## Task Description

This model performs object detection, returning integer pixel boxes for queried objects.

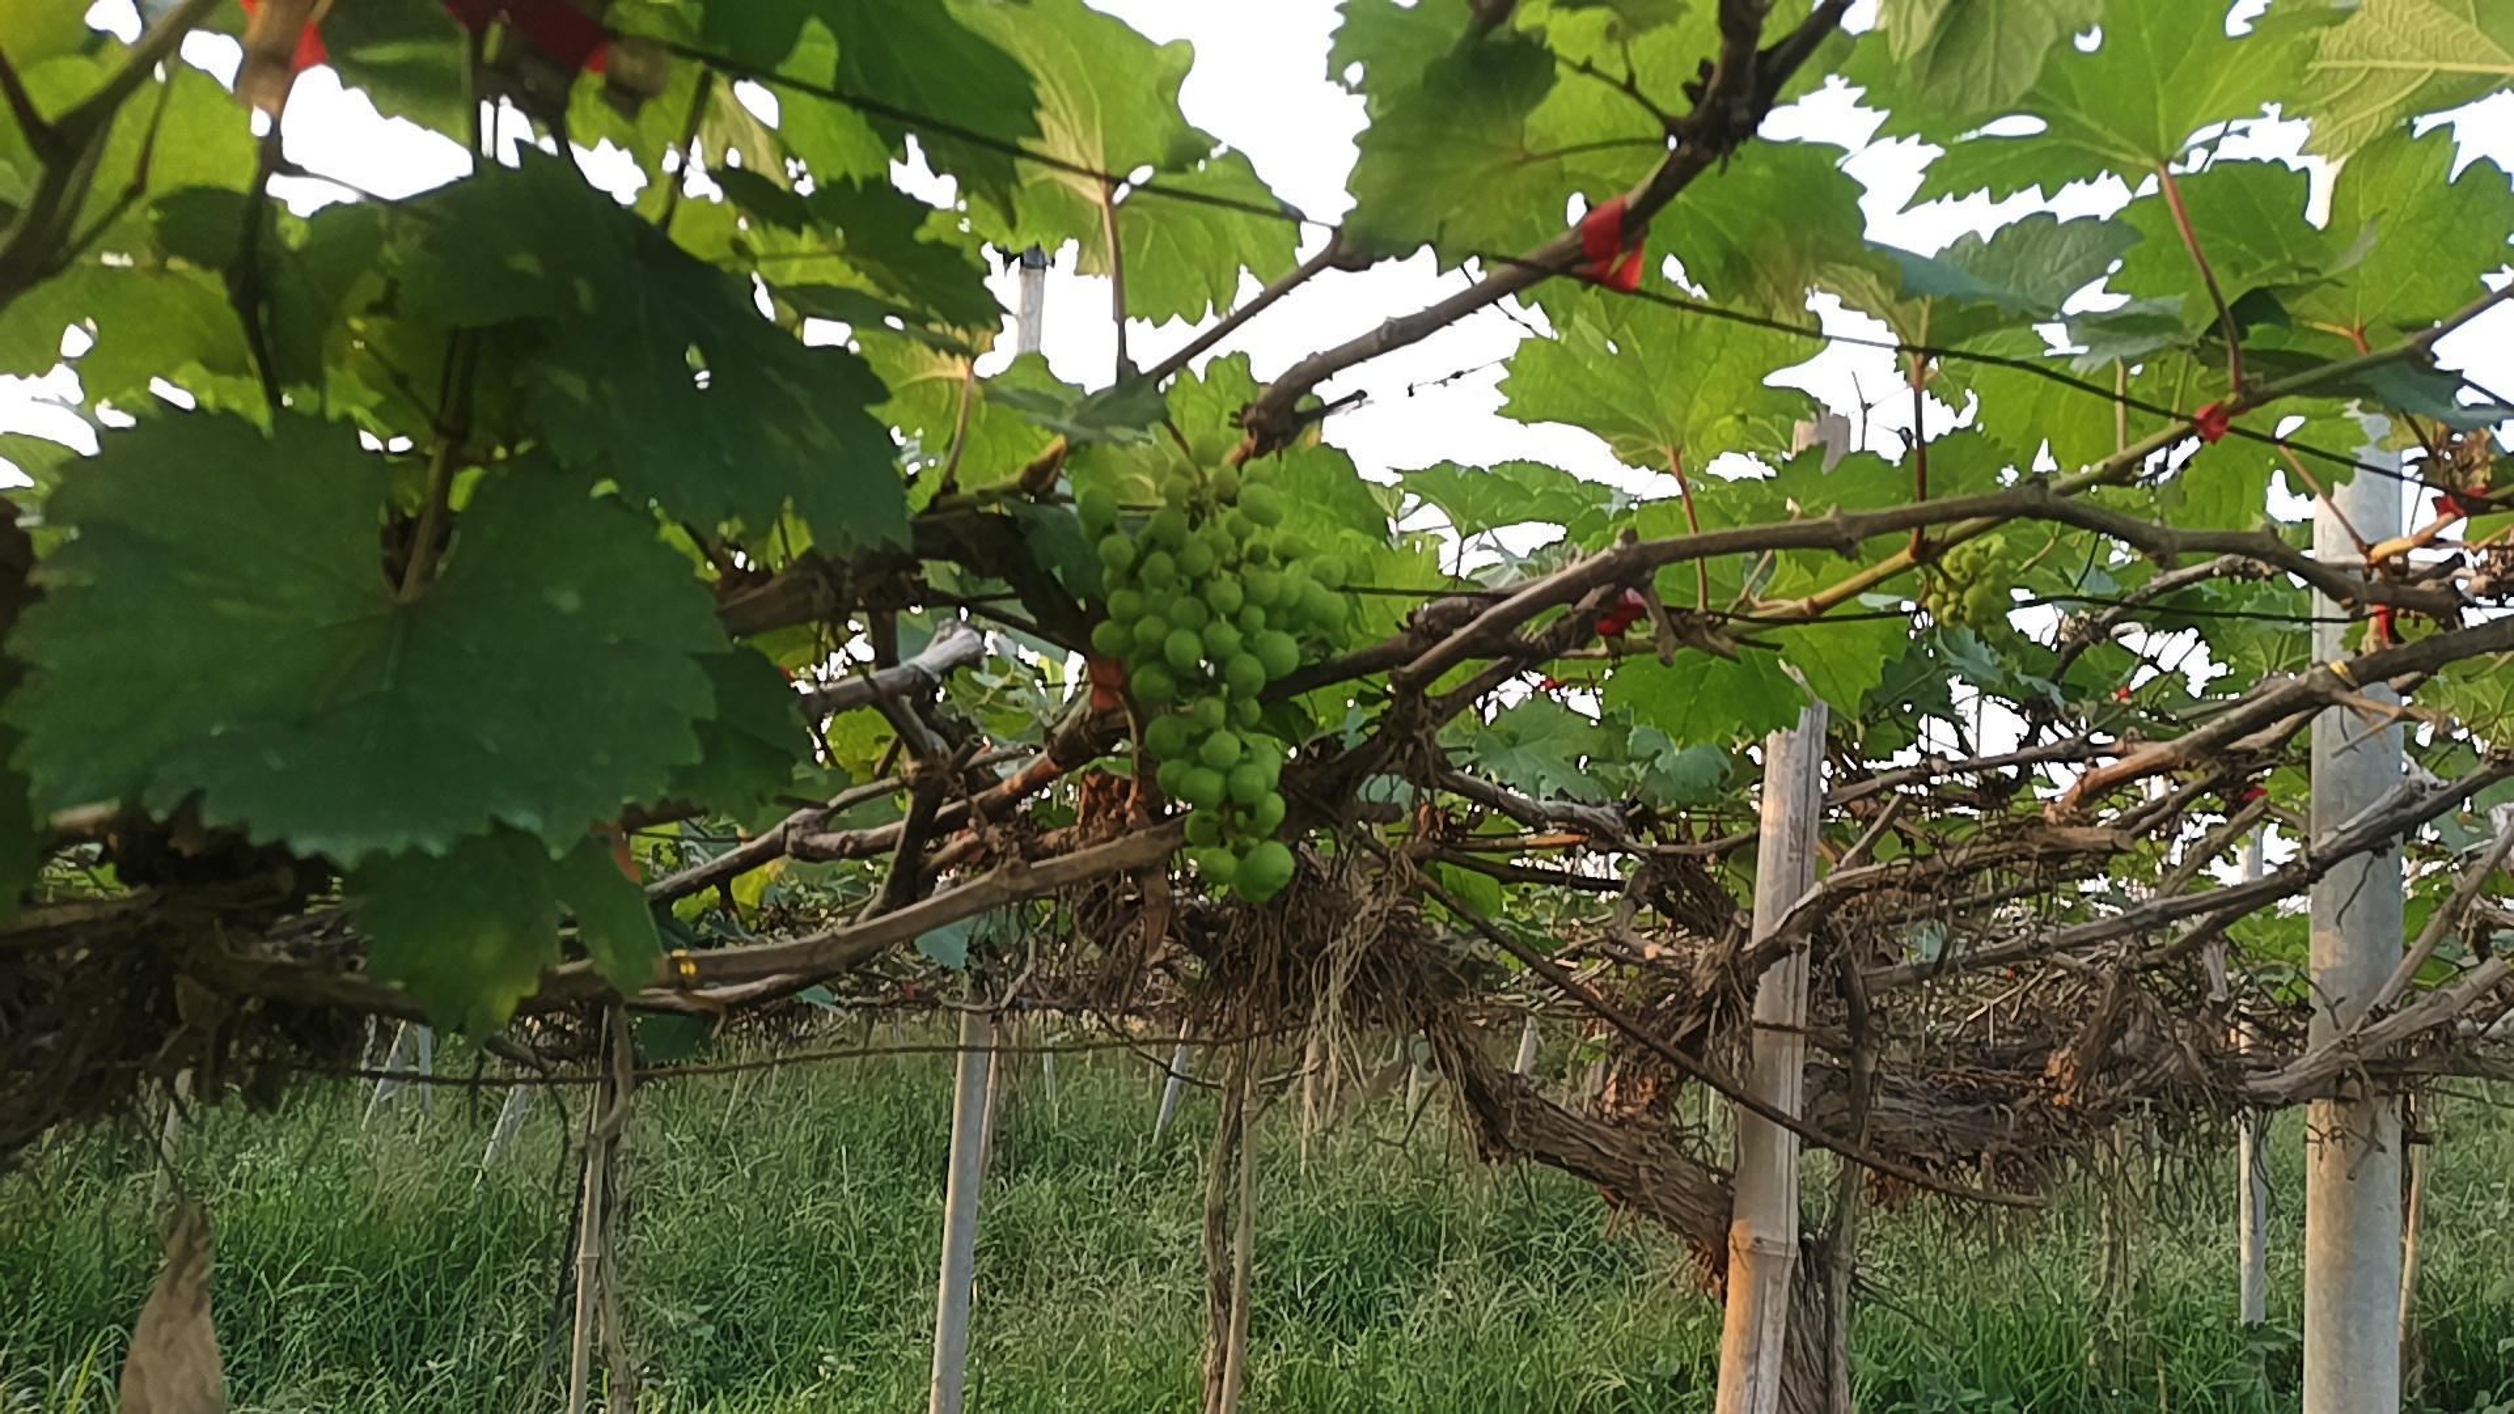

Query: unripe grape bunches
[1927,537,2019,642]
[1076,435,1351,903]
